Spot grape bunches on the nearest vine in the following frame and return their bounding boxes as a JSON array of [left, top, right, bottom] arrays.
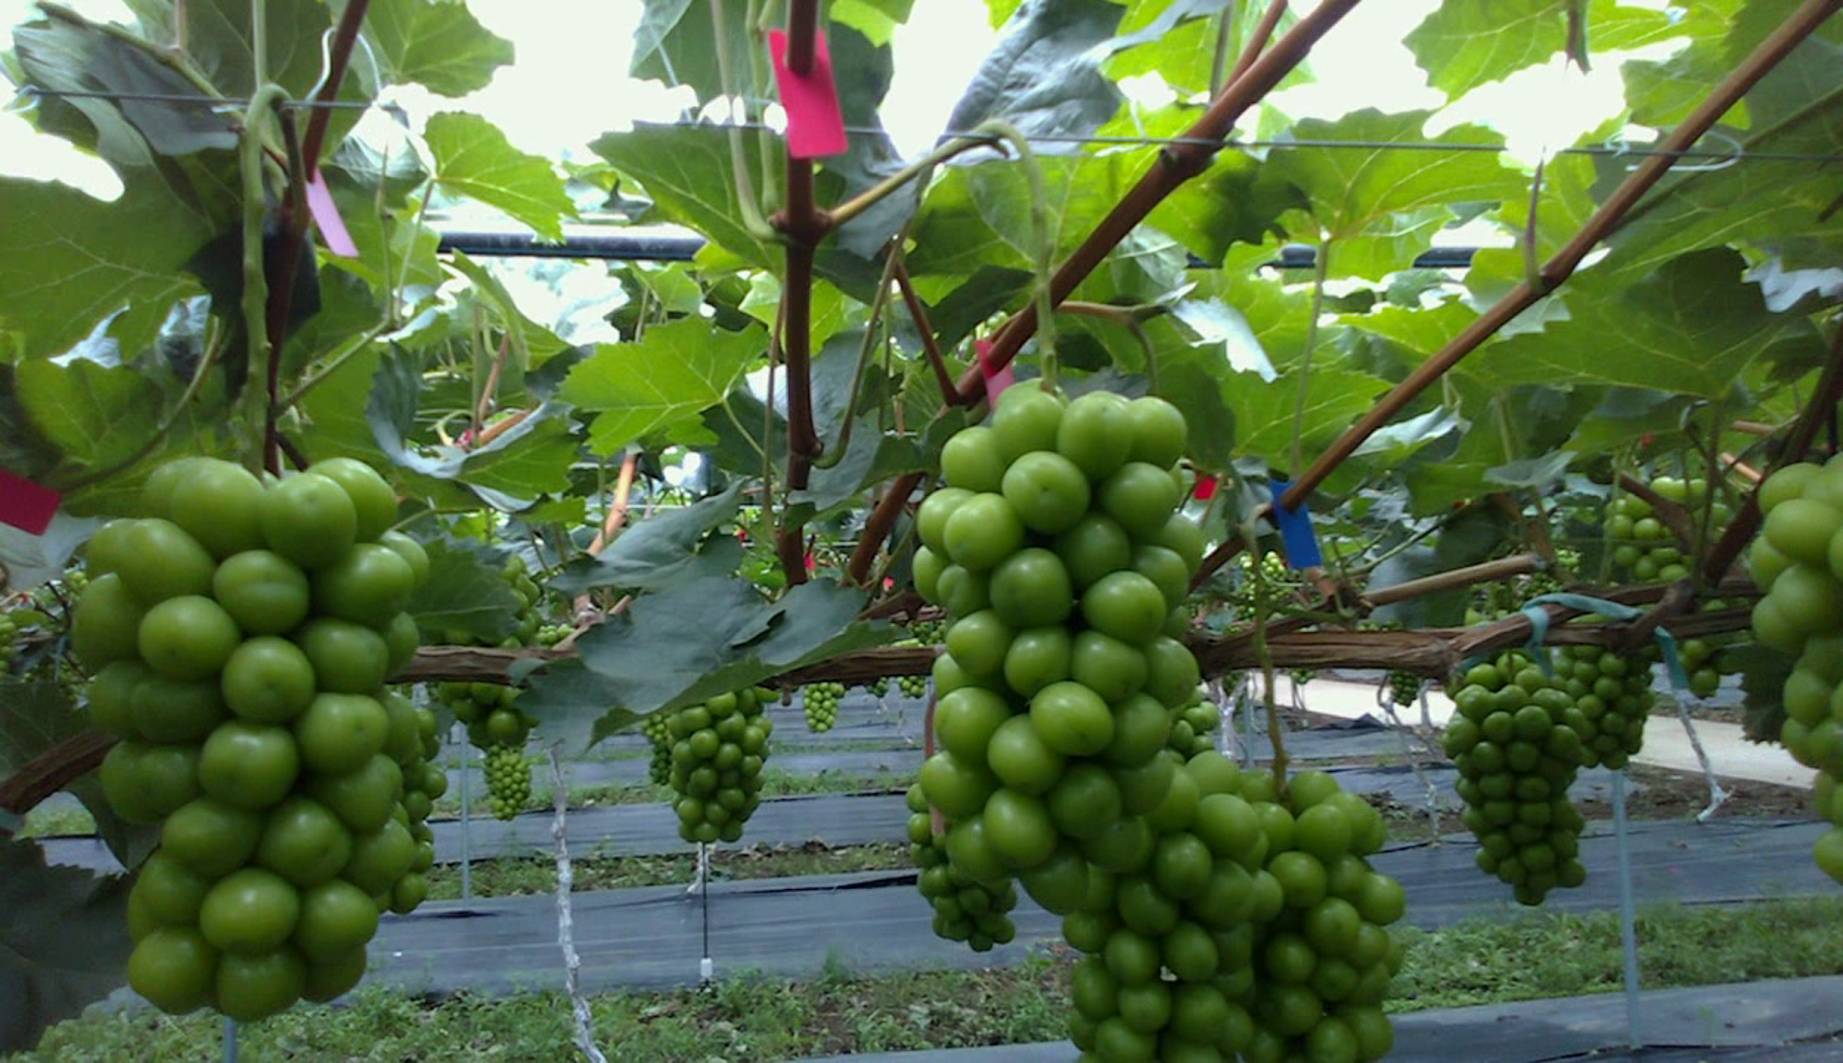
[[1443, 653, 1590, 907], [1062, 749, 1282, 1062], [913, 376, 1205, 914], [1233, 766, 1407, 1060], [1751, 453, 1842, 881], [72, 455, 431, 1026]]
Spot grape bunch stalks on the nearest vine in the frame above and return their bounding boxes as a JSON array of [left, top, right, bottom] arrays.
[[830, 123, 1056, 396], [1242, 500, 1289, 805], [239, 86, 309, 486]]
